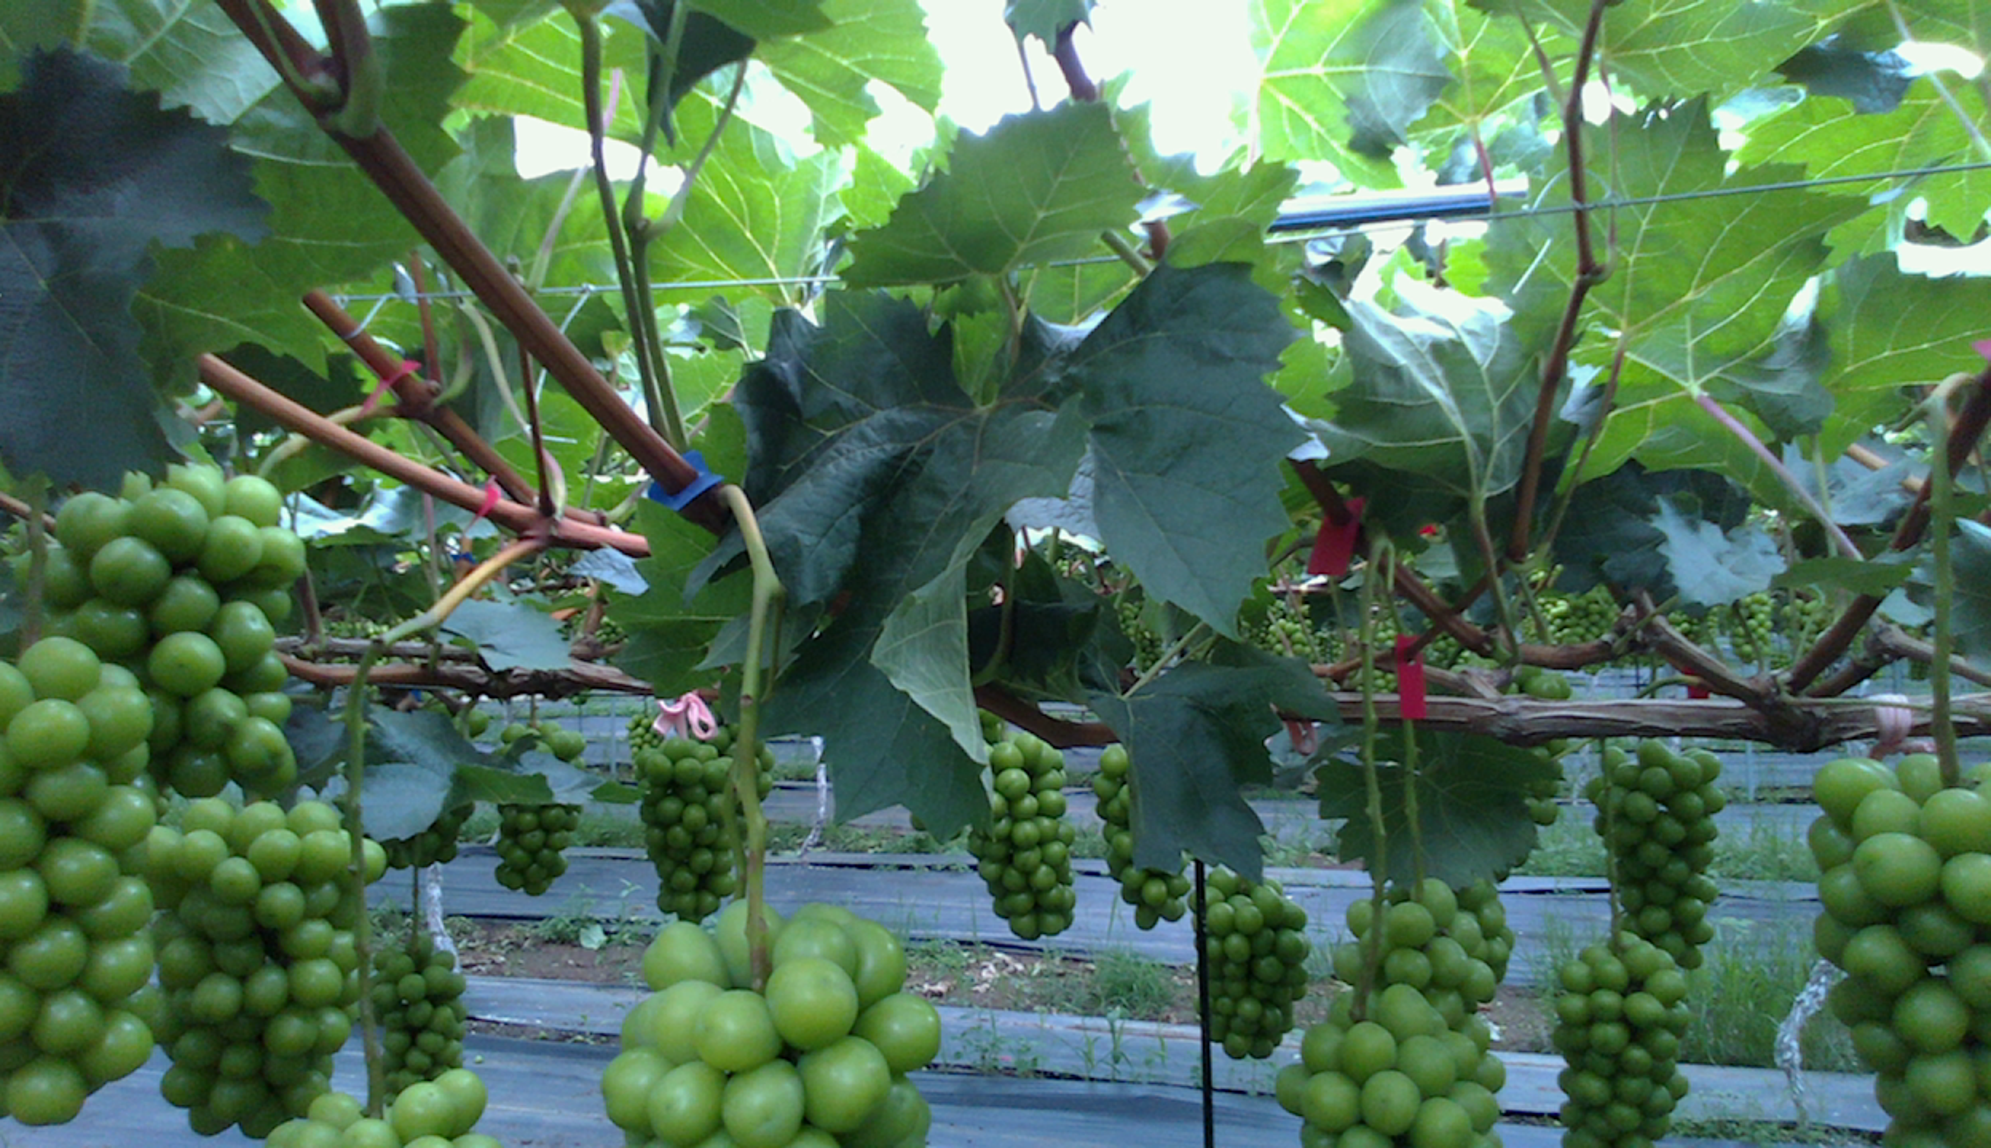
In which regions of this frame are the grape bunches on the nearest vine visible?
[1332,880,1503,1041]
[1270,987,1508,1146]
[1806,757,1989,1146]
[49,470,308,800]
[150,799,359,1138]
[263,1070,496,1146]
[595,899,943,1146]
[0,635,164,1122]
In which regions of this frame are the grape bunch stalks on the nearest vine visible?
[707,483,777,993]
[346,541,538,1119]
[1404,722,1425,902]
[1929,372,1978,789]
[1350,520,1386,1024]
[19,477,45,655]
